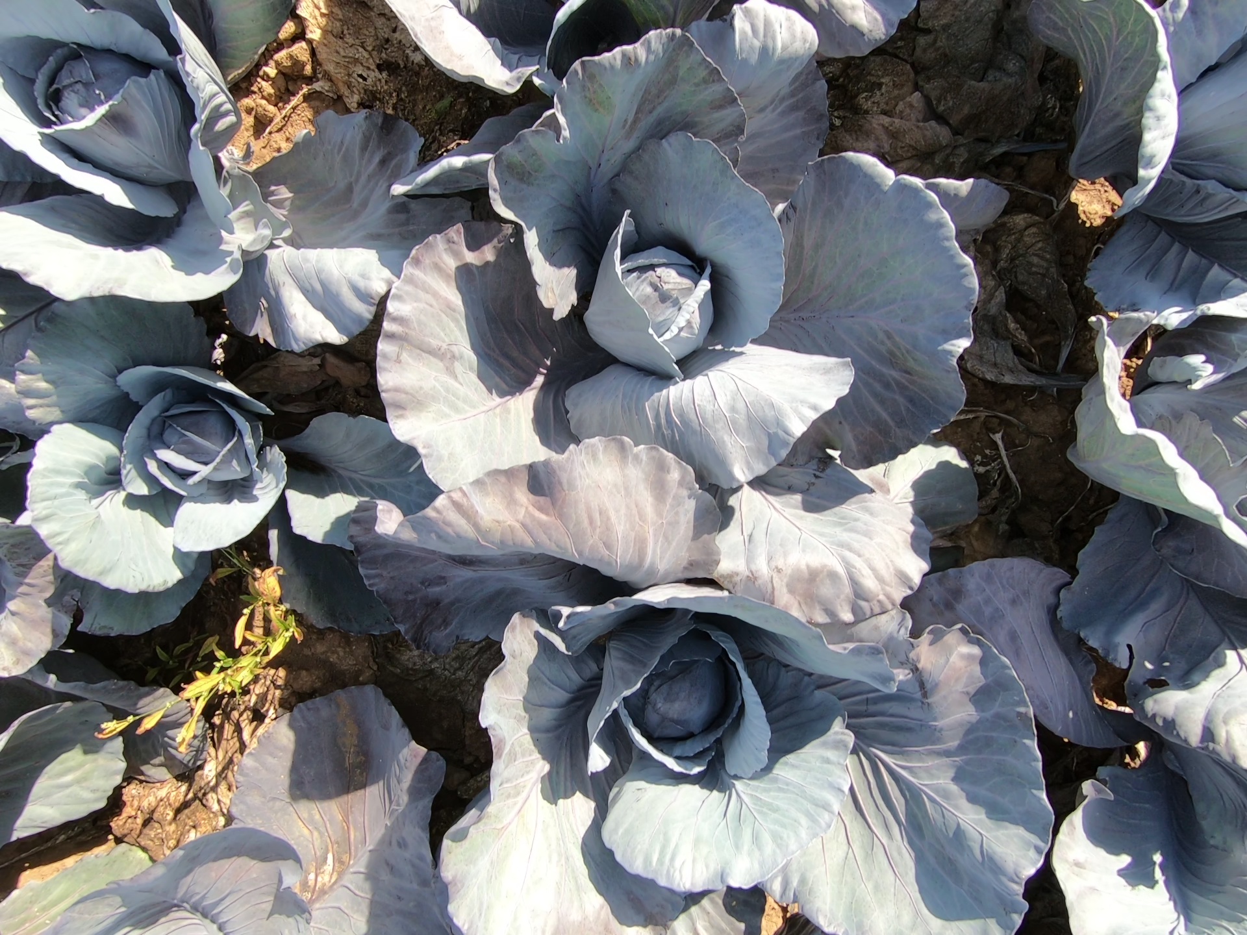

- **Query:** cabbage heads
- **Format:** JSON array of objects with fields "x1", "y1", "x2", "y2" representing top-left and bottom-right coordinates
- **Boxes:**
[
  {"x1": 162, "y1": 406, "x2": 238, "y2": 467},
  {"x1": 605, "y1": 247, "x2": 709, "y2": 360},
  {"x1": 53, "y1": 55, "x2": 173, "y2": 175},
  {"x1": 621, "y1": 636, "x2": 722, "y2": 740}
]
